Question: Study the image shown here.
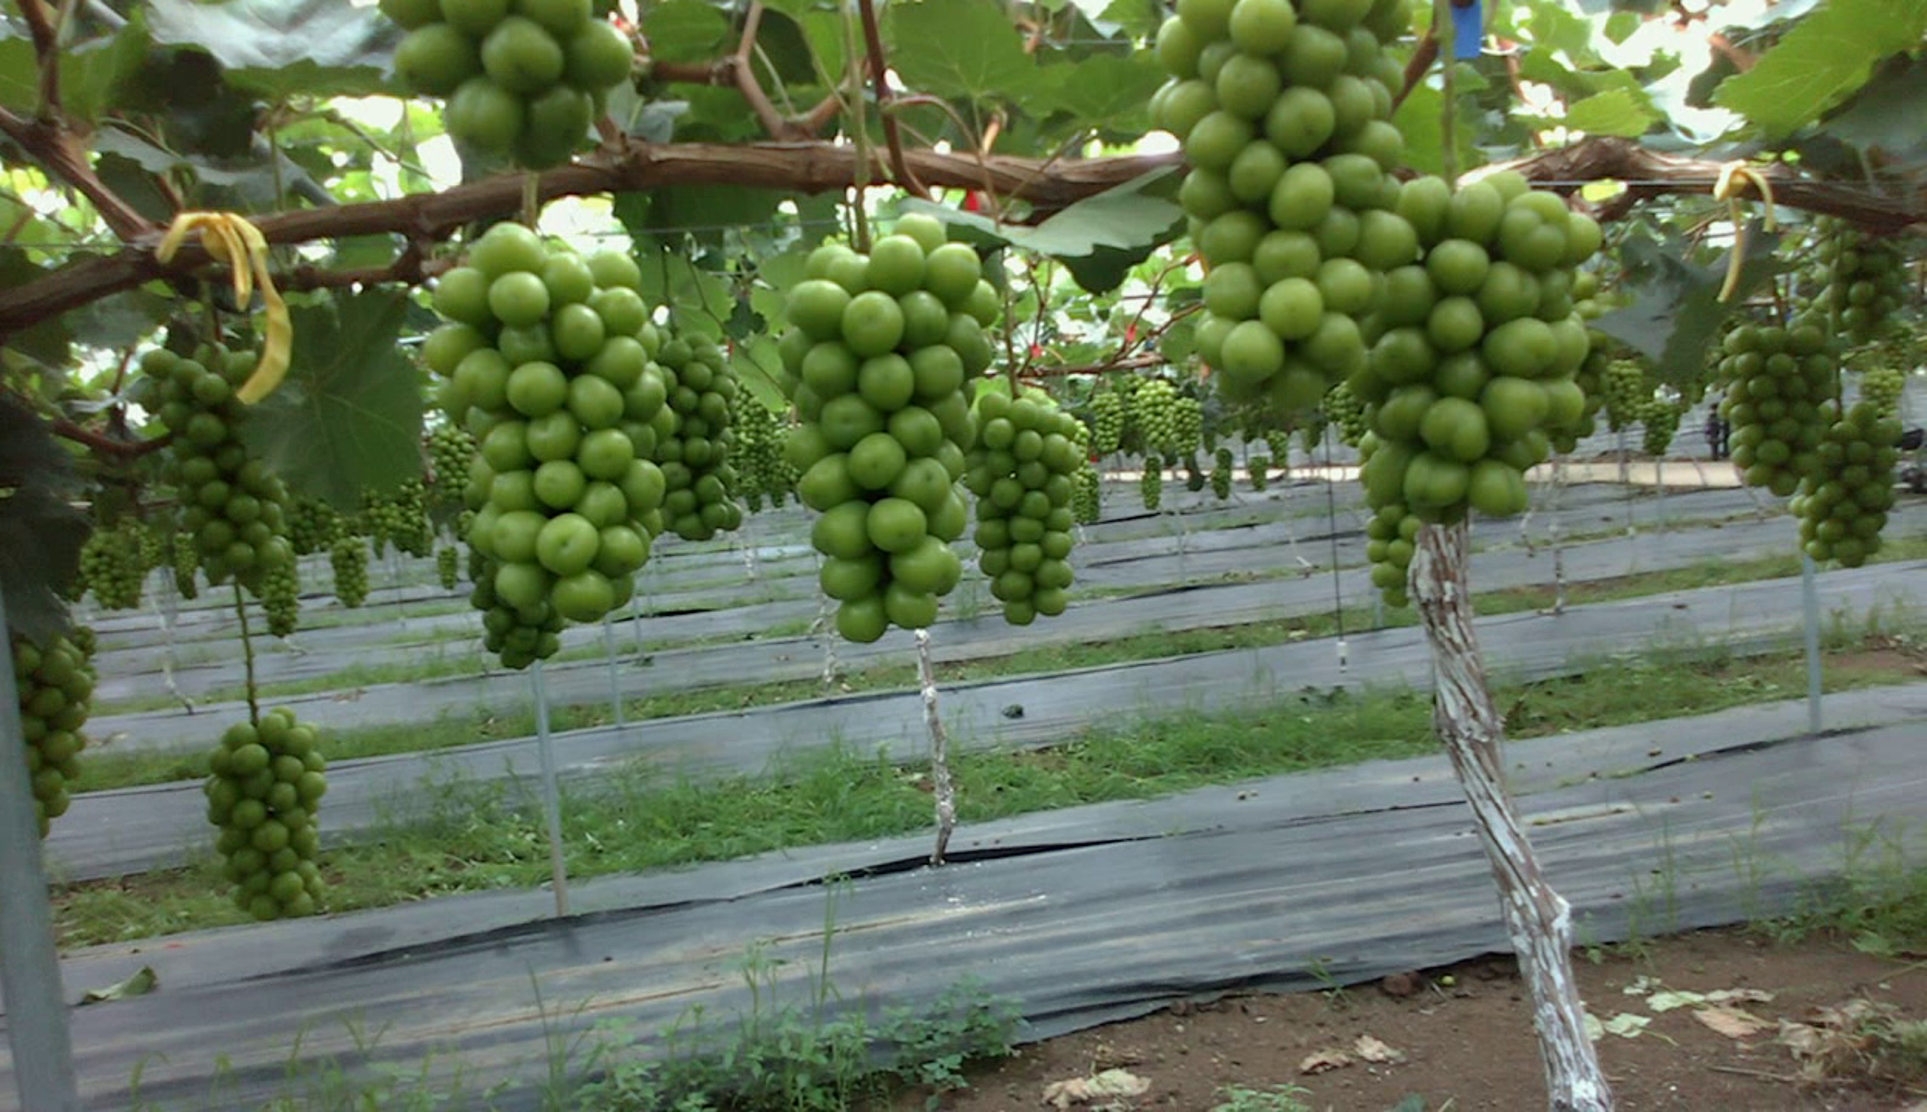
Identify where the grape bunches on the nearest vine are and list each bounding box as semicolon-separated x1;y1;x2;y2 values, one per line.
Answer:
778;213;1002;646
1351;165;1601;524
429;222;672;622
378;2;632;171
1152;0;1414;419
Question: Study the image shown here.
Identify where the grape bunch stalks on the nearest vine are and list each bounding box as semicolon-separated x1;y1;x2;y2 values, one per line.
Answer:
520;173;534;227
838;2;869;252
1431;0;1459;190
